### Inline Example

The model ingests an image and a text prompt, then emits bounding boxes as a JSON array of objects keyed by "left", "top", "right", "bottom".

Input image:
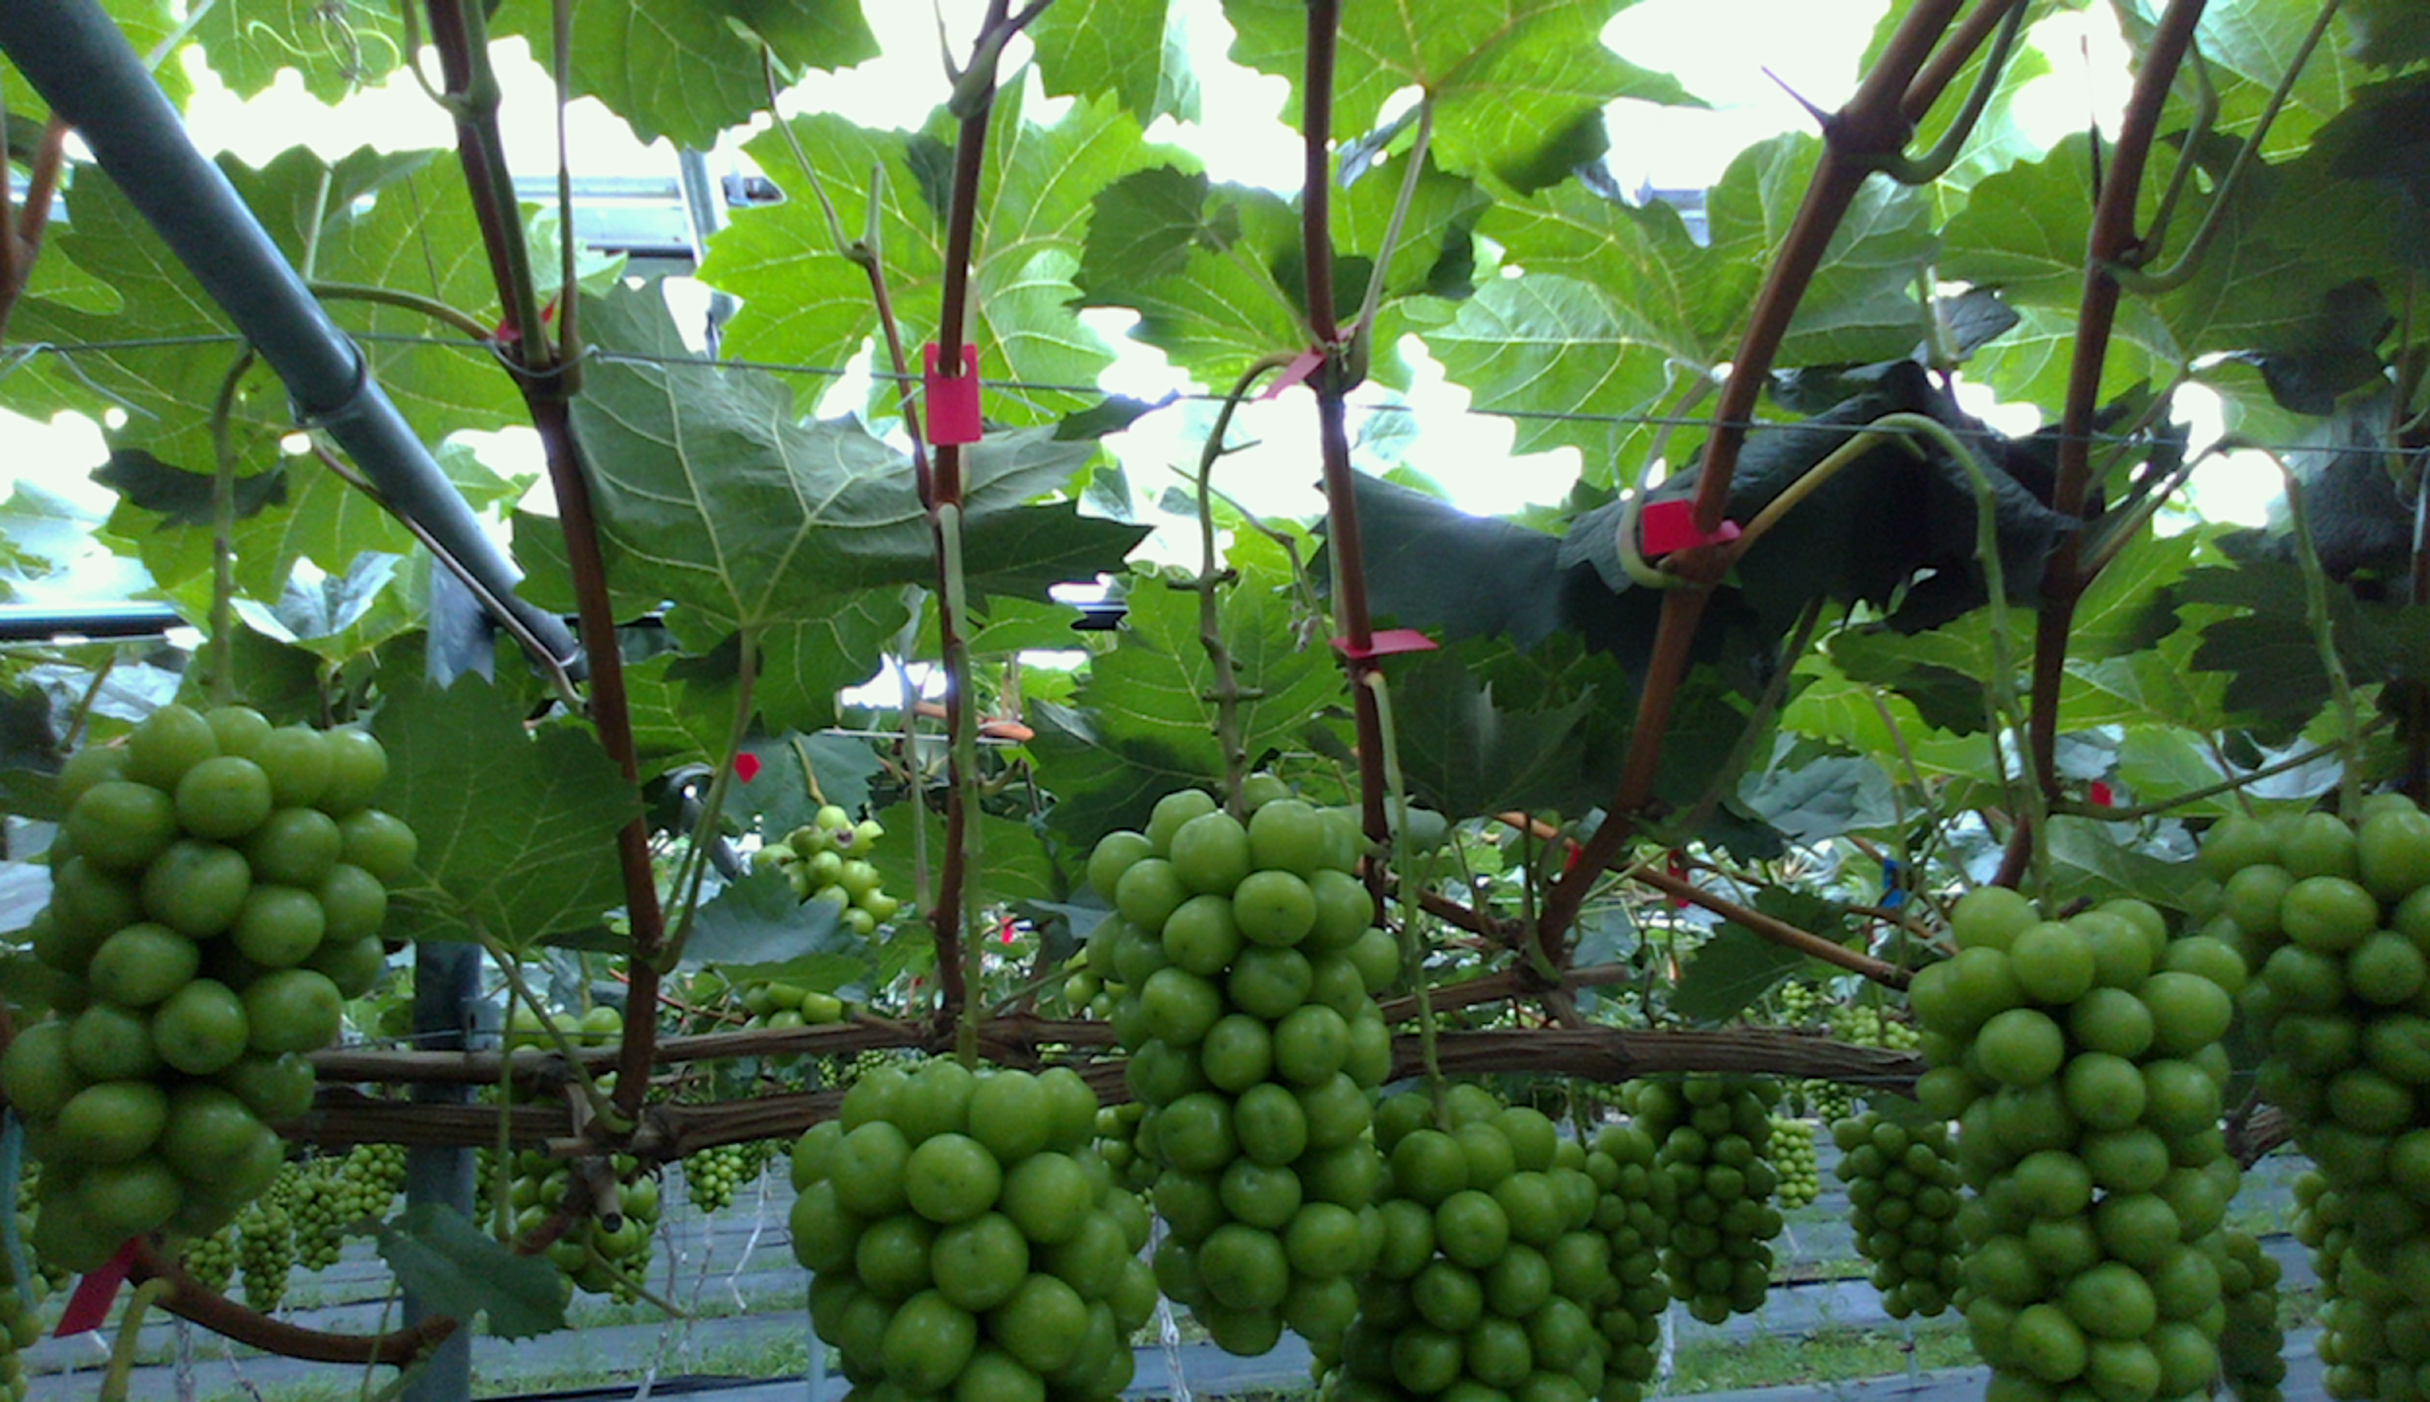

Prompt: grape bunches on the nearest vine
[
  {"left": 1910, "top": 886, "right": 2247, "bottom": 1400},
  {"left": 1088, "top": 773, "right": 1400, "bottom": 1361},
  {"left": 4, "top": 701, "right": 419, "bottom": 1270},
  {"left": 2204, "top": 794, "right": 2428, "bottom": 1250},
  {"left": 1334, "top": 1087, "right": 1610, "bottom": 1398},
  {"left": 785, "top": 1059, "right": 1159, "bottom": 1400}
]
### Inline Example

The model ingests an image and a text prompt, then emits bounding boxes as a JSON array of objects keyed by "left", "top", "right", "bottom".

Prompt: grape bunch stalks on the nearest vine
[
  {"left": 2080, "top": 430, "right": 2364, "bottom": 826},
  {"left": 942, "top": 514, "right": 979, "bottom": 1063},
  {"left": 1375, "top": 680, "right": 1449, "bottom": 1127},
  {"left": 1166, "top": 397, "right": 1260, "bottom": 818},
  {"left": 1725, "top": 411, "right": 2056, "bottom": 917},
  {"left": 201, "top": 339, "right": 255, "bottom": 705}
]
